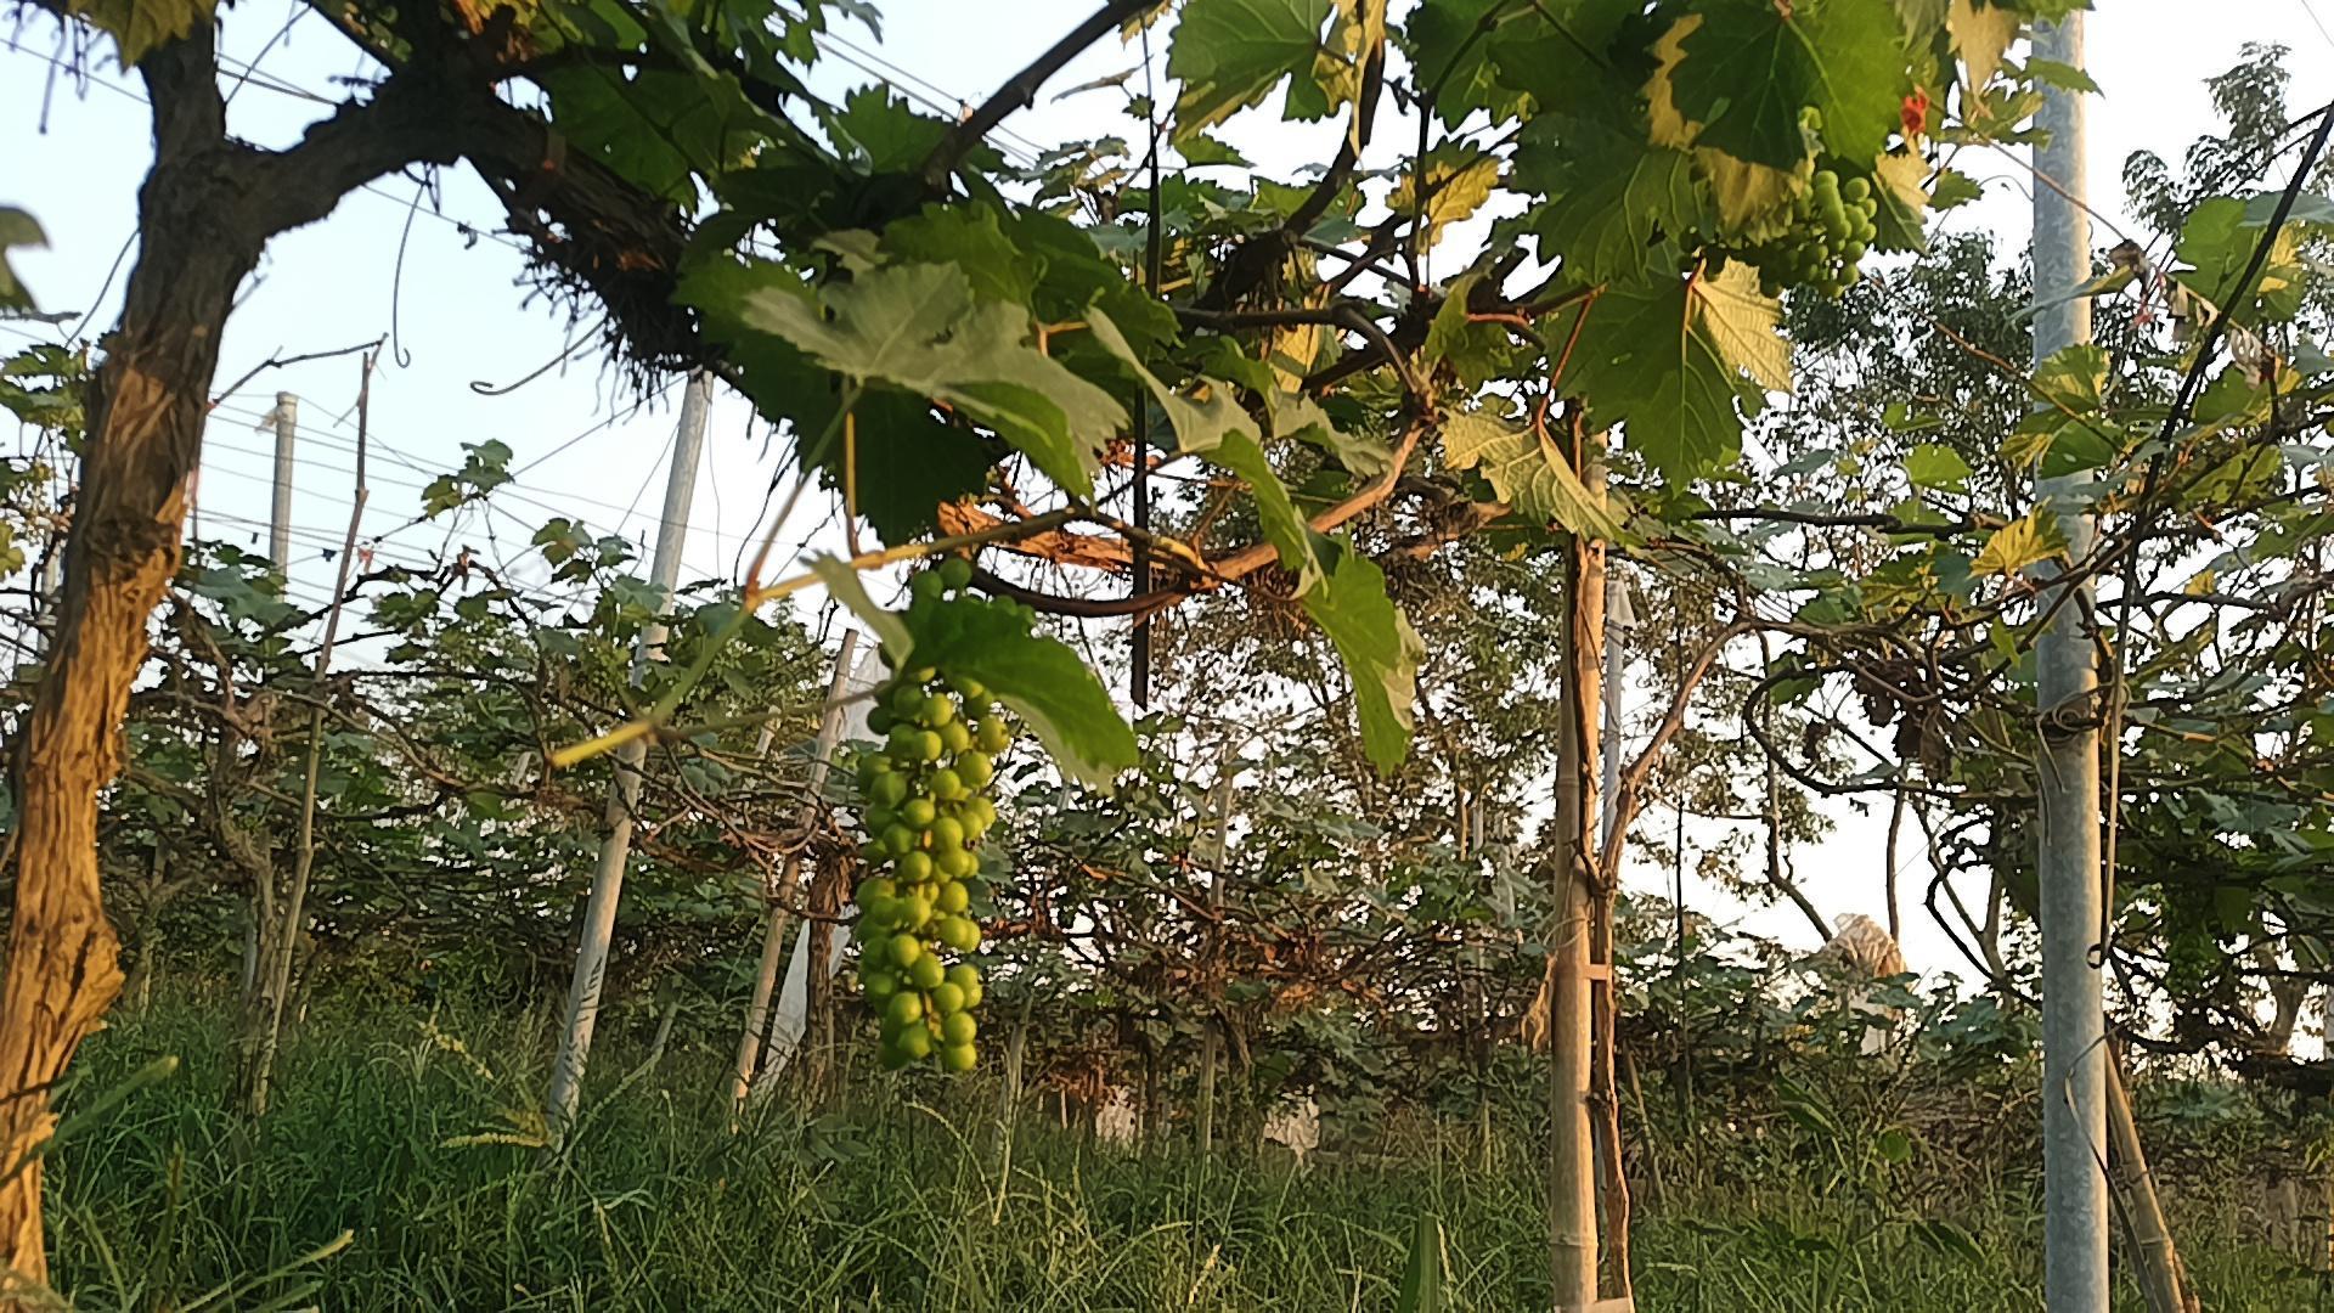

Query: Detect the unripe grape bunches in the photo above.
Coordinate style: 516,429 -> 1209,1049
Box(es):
1675,159 -> 1885,298
857,558 -> 1032,1072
